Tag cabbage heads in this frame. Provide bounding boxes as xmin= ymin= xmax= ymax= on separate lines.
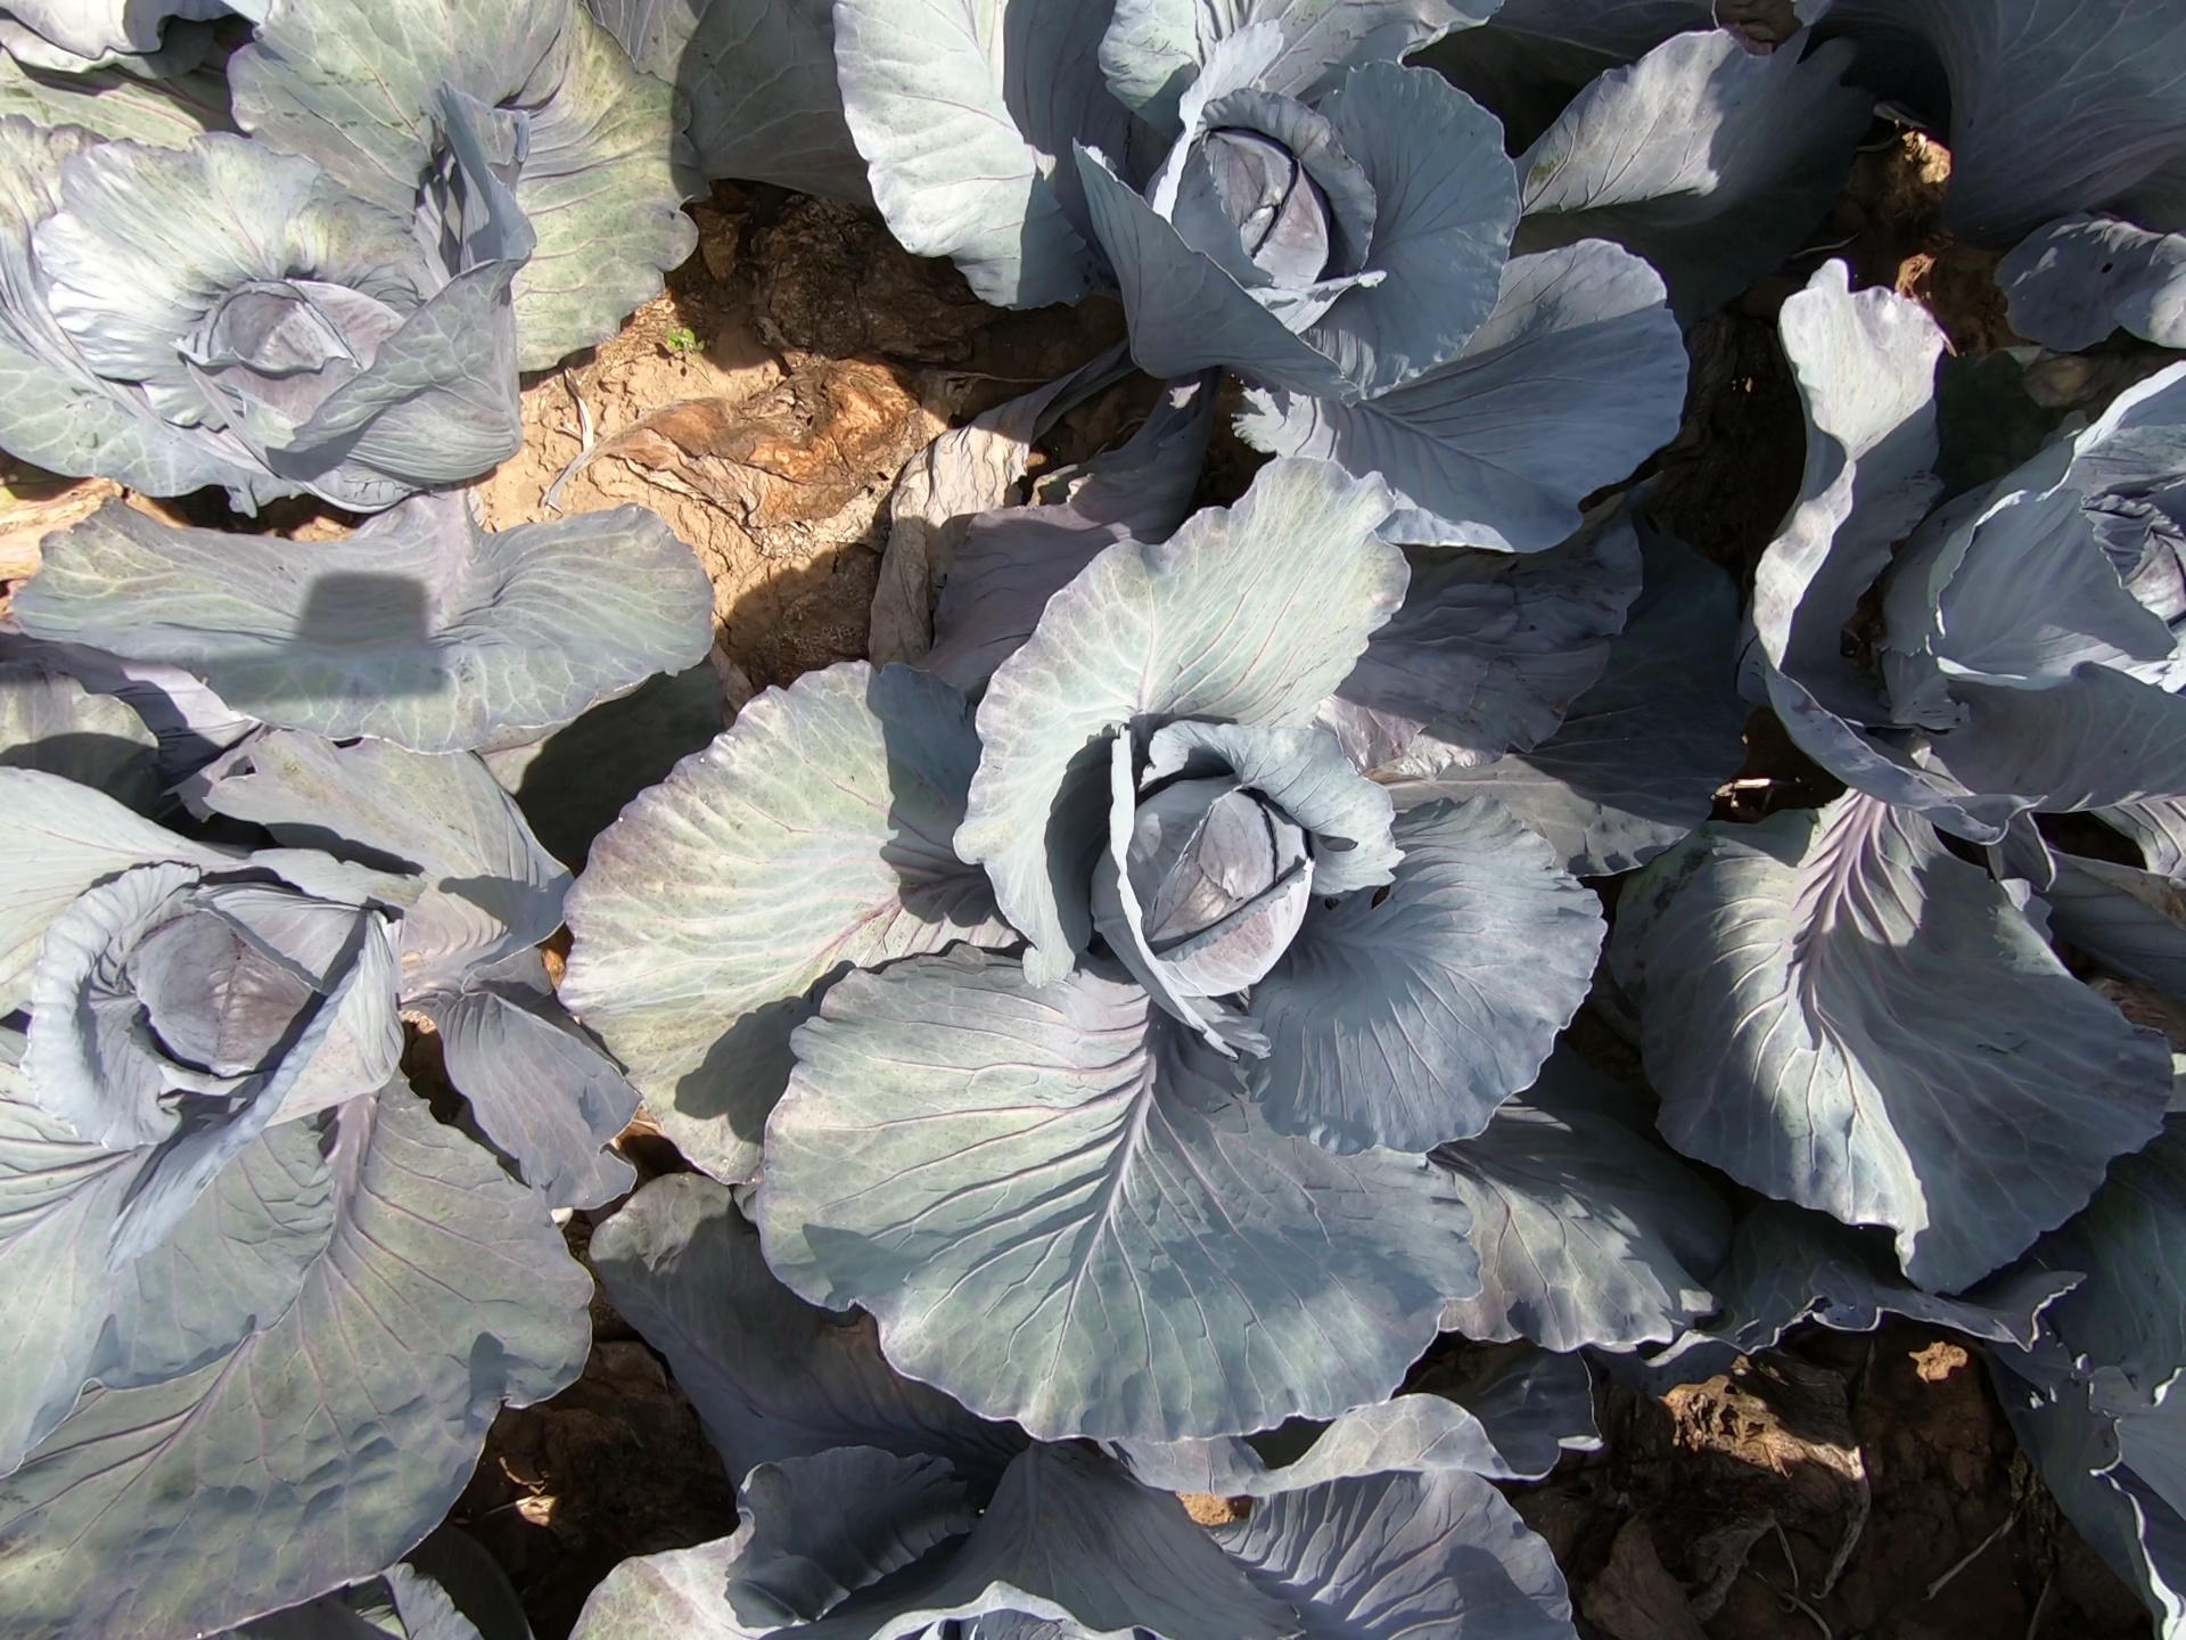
xmin=1152 ymin=125 xmax=1337 ymax=334
xmin=1091 ymin=779 xmax=1312 ymax=999
xmin=188 ymin=279 xmax=424 ymax=469
xmin=134 ymin=905 xmax=365 ymax=1088
xmin=1939 ymin=494 xmax=2177 ymax=710
xmin=954 ymin=1481 xmax=1181 ymax=1638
